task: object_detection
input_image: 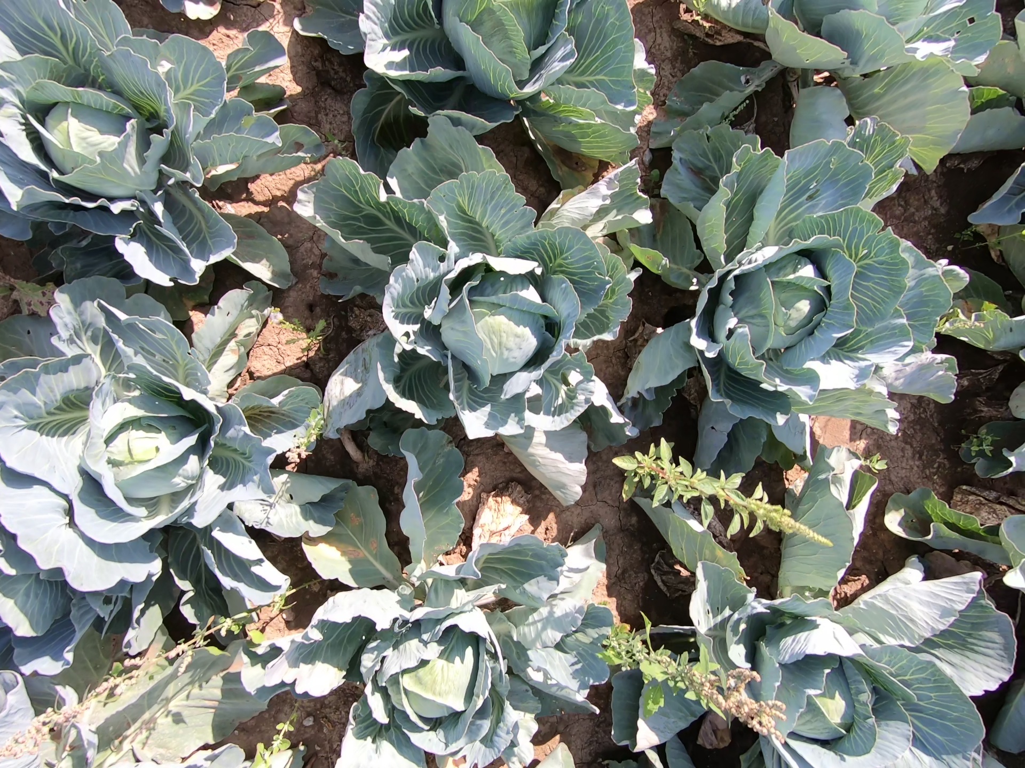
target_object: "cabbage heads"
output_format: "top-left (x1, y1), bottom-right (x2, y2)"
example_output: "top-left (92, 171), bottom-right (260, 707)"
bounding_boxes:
top-left (393, 617), bottom-right (491, 719)
top-left (448, 271), bottom-right (546, 378)
top-left (42, 88), bottom-right (144, 187)
top-left (739, 247), bottom-right (829, 349)
top-left (763, 641), bottom-right (874, 737)
top-left (451, 1), bottom-right (560, 60)
top-left (91, 407), bottom-right (201, 498)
